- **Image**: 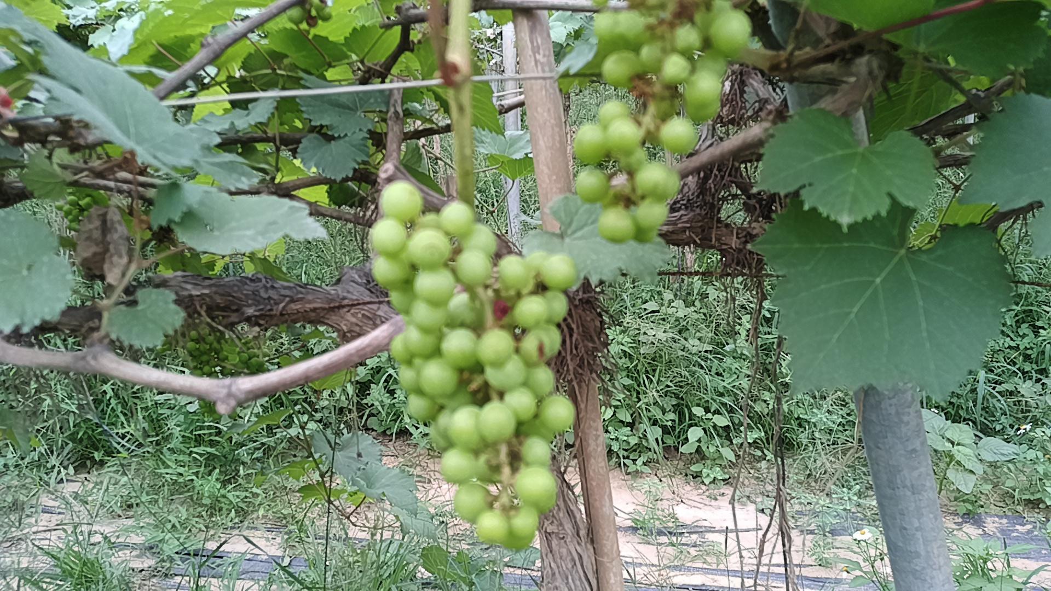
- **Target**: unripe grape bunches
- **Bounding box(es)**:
[231,337,271,378]
[182,325,238,420]
[369,182,578,551]
[573,0,752,244]
[55,195,94,232]
[287,0,332,27]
